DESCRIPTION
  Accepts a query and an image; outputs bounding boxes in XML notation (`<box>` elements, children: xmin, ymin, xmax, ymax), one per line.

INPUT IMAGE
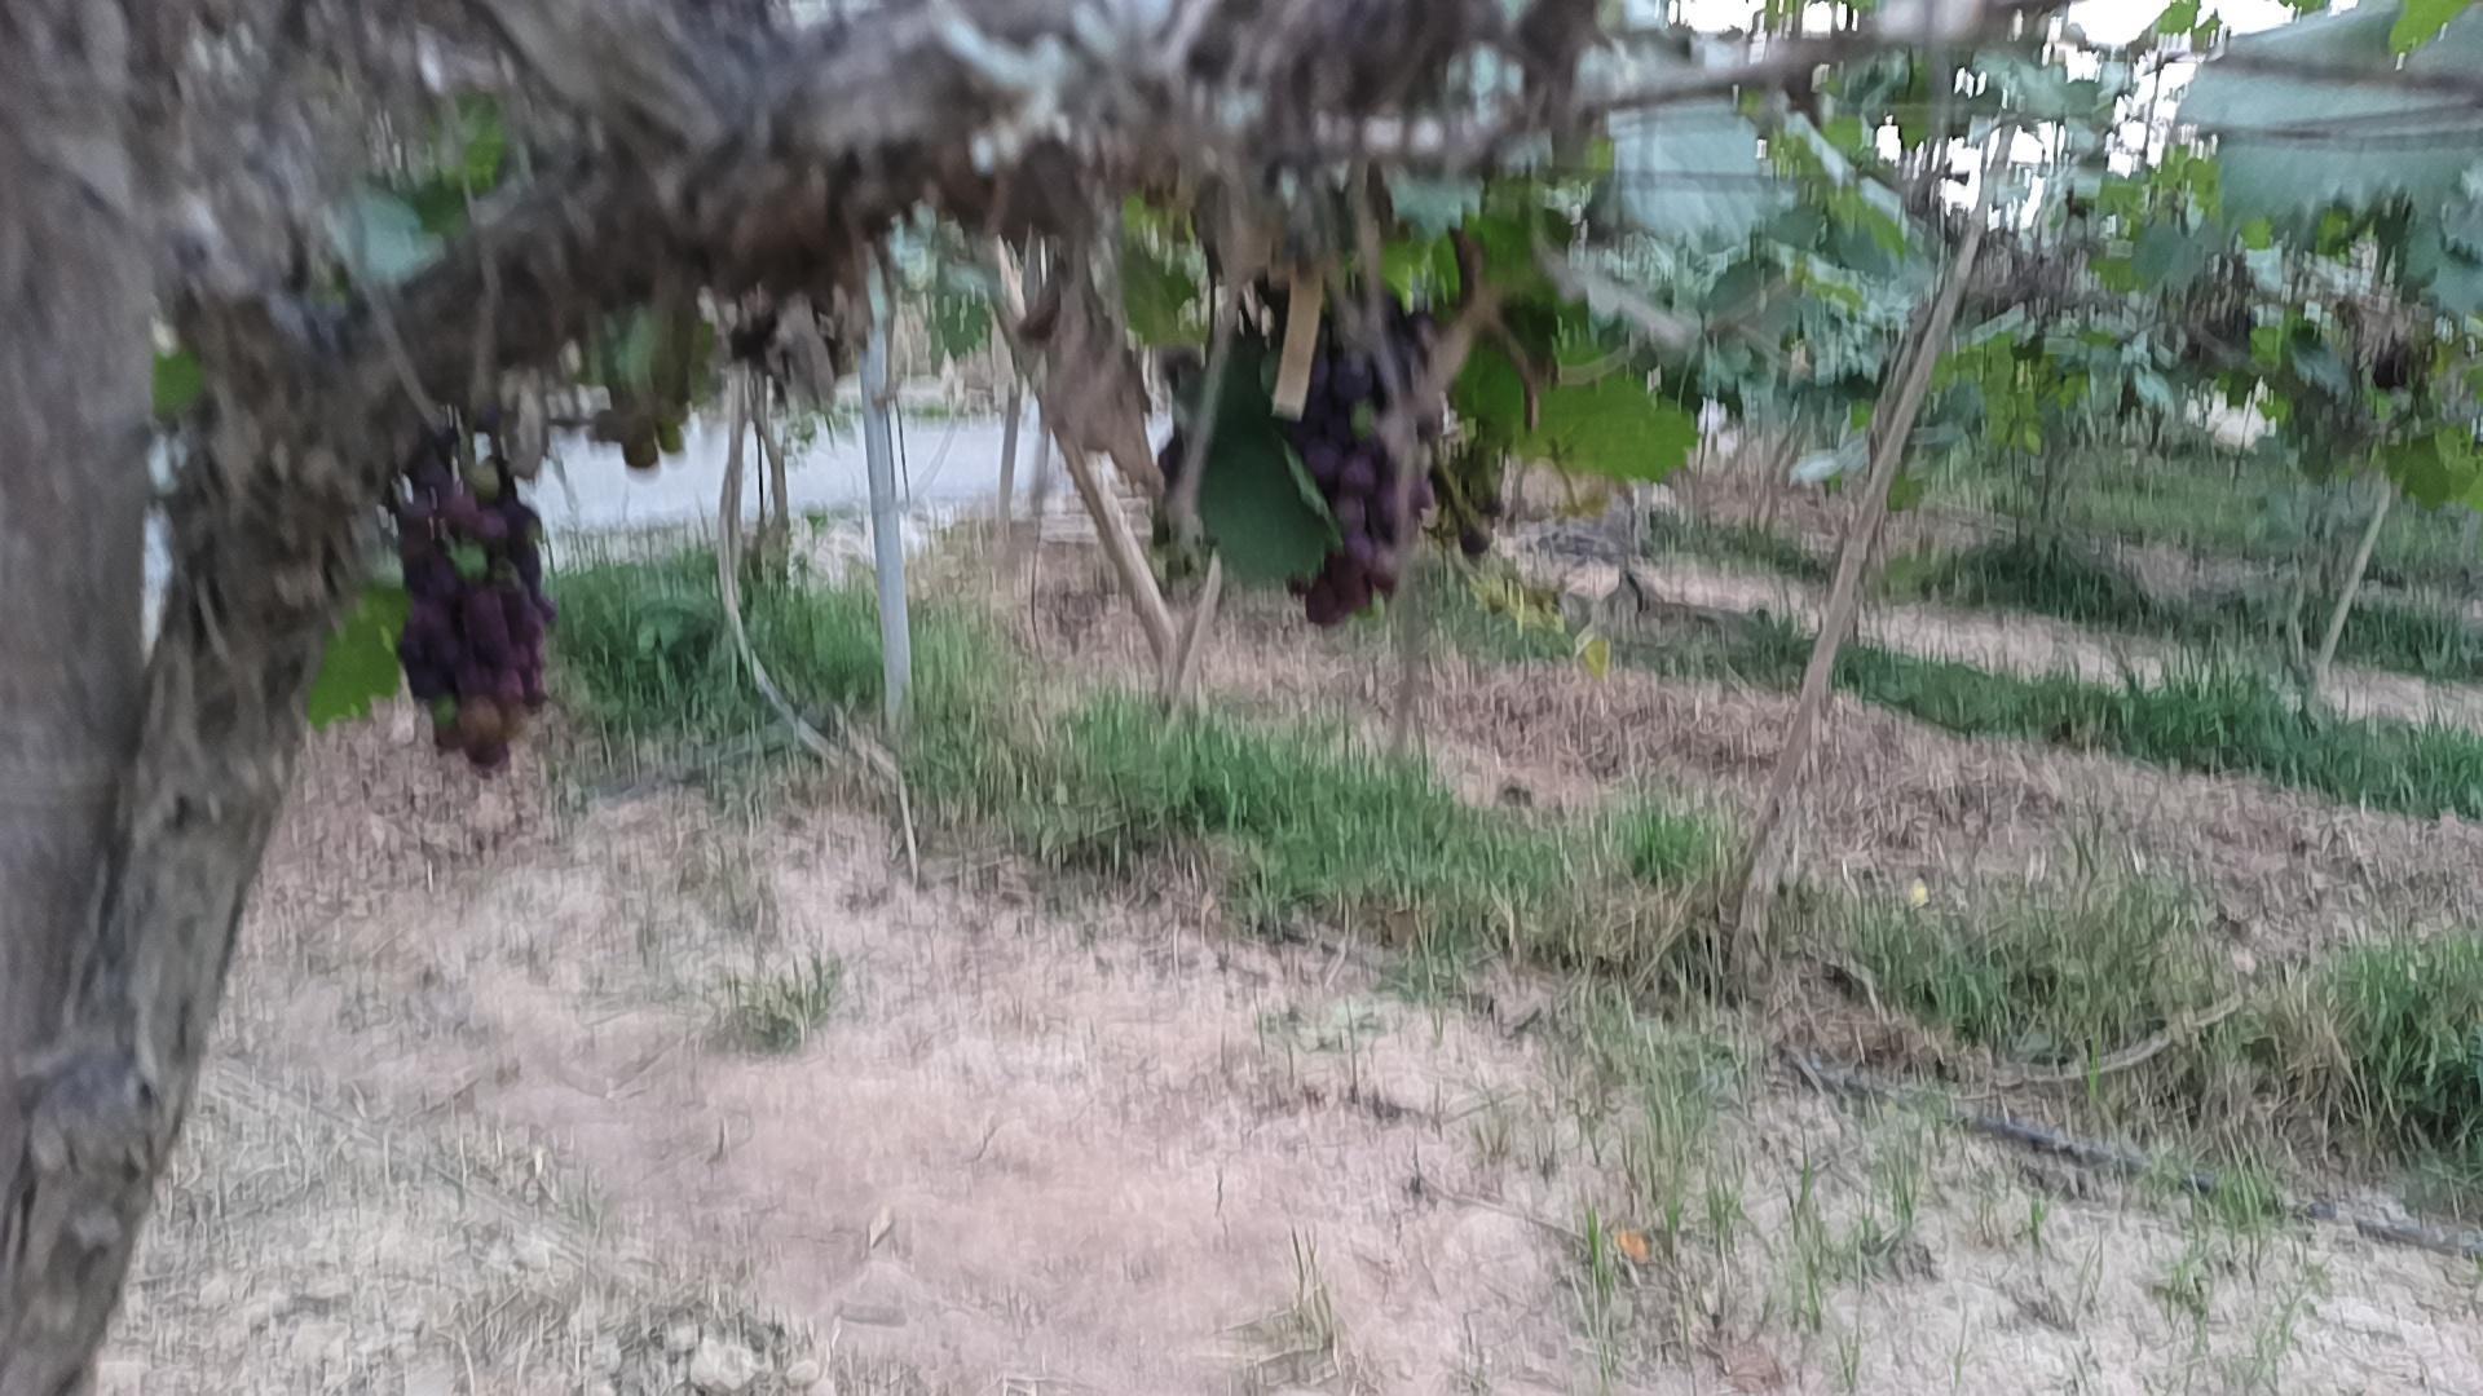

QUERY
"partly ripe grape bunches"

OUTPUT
<box><xmin>392</xmin><ymin>419</ymin><xmax>555</xmax><ymax>772</ymax></box>
<box><xmin>591</xmin><ymin>296</ymin><xmax>713</xmax><ymax>472</ymax></box>
<box><xmin>1258</xmin><ymin>288</ymin><xmax>1450</xmax><ymax>627</ymax></box>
